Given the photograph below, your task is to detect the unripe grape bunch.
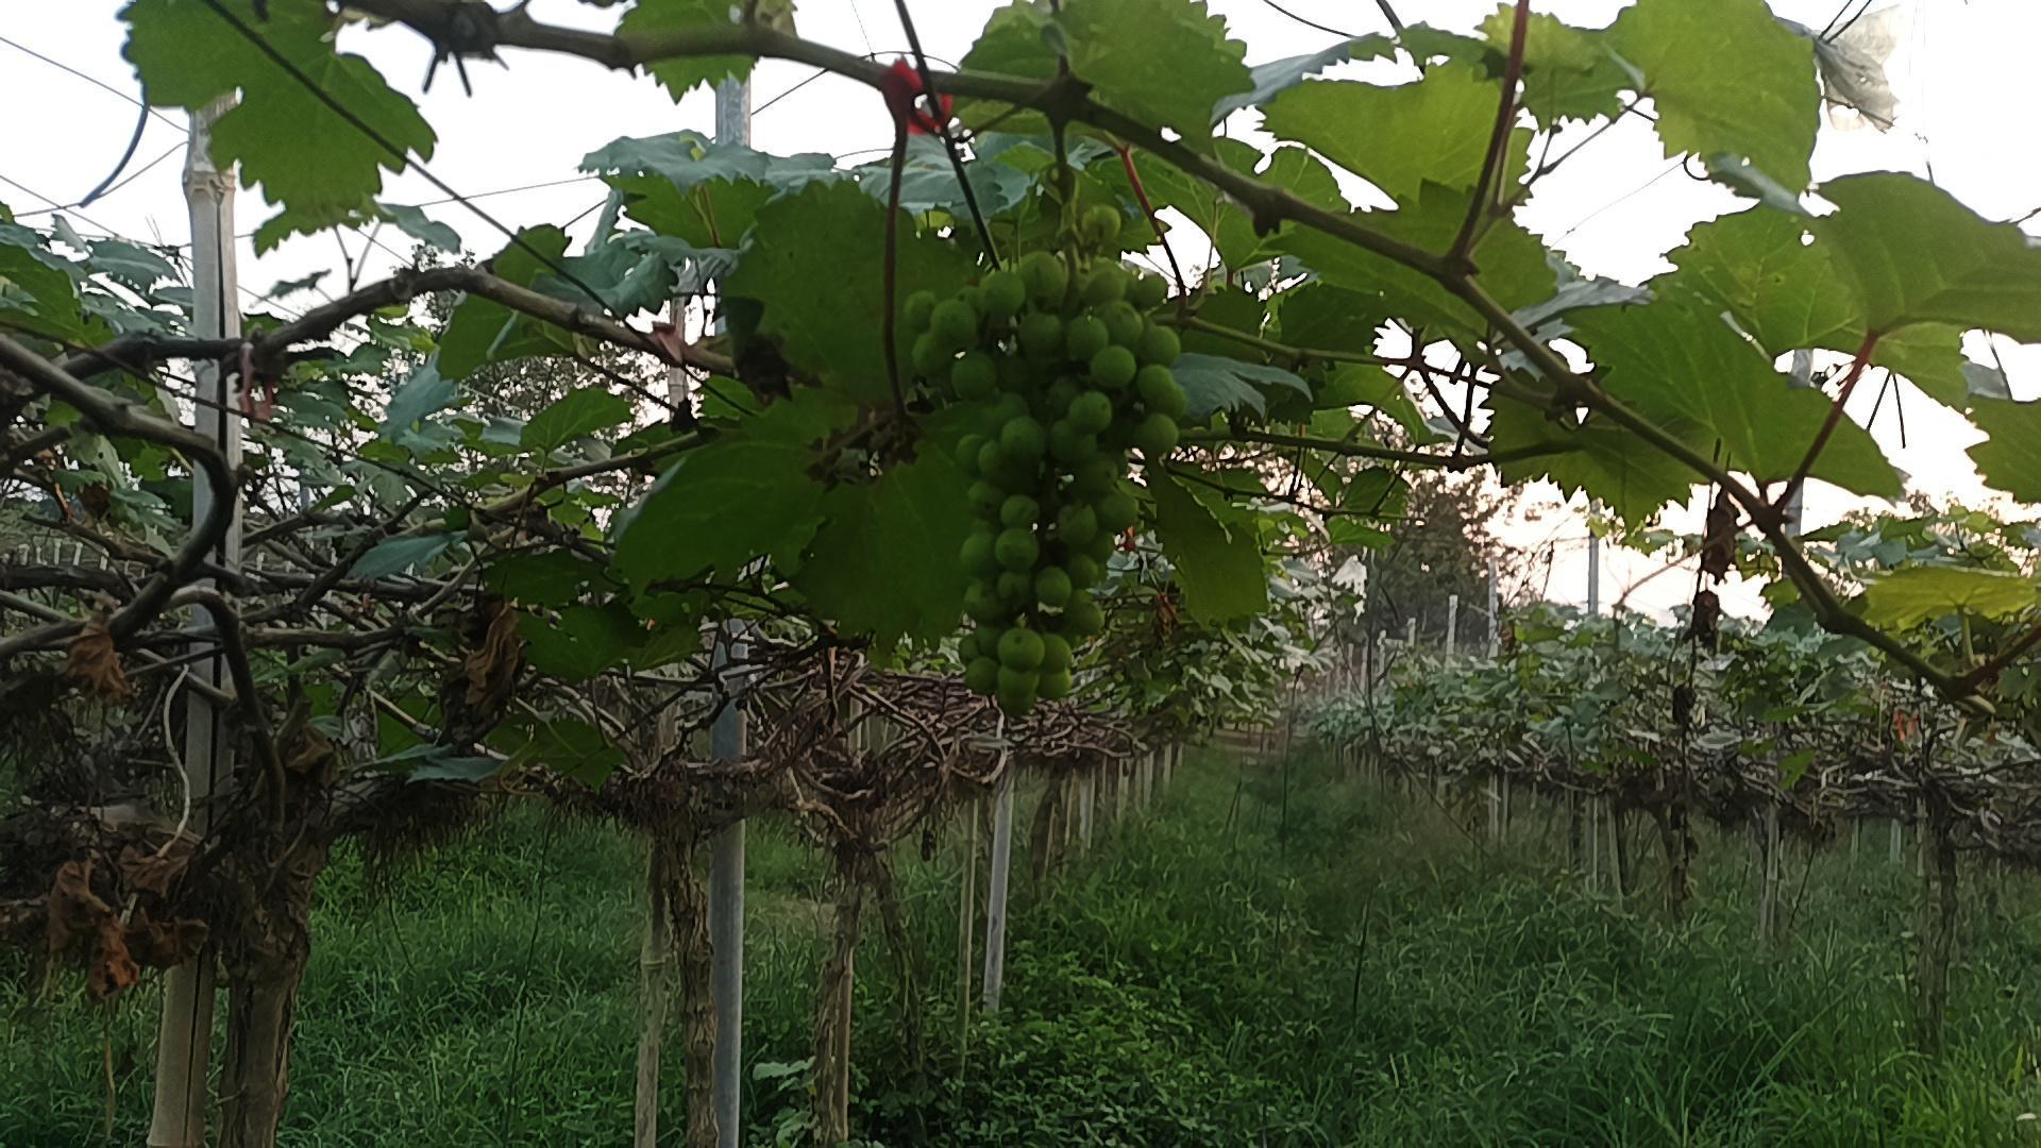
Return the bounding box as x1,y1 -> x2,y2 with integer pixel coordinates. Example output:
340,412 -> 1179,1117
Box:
912,206 -> 1184,713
